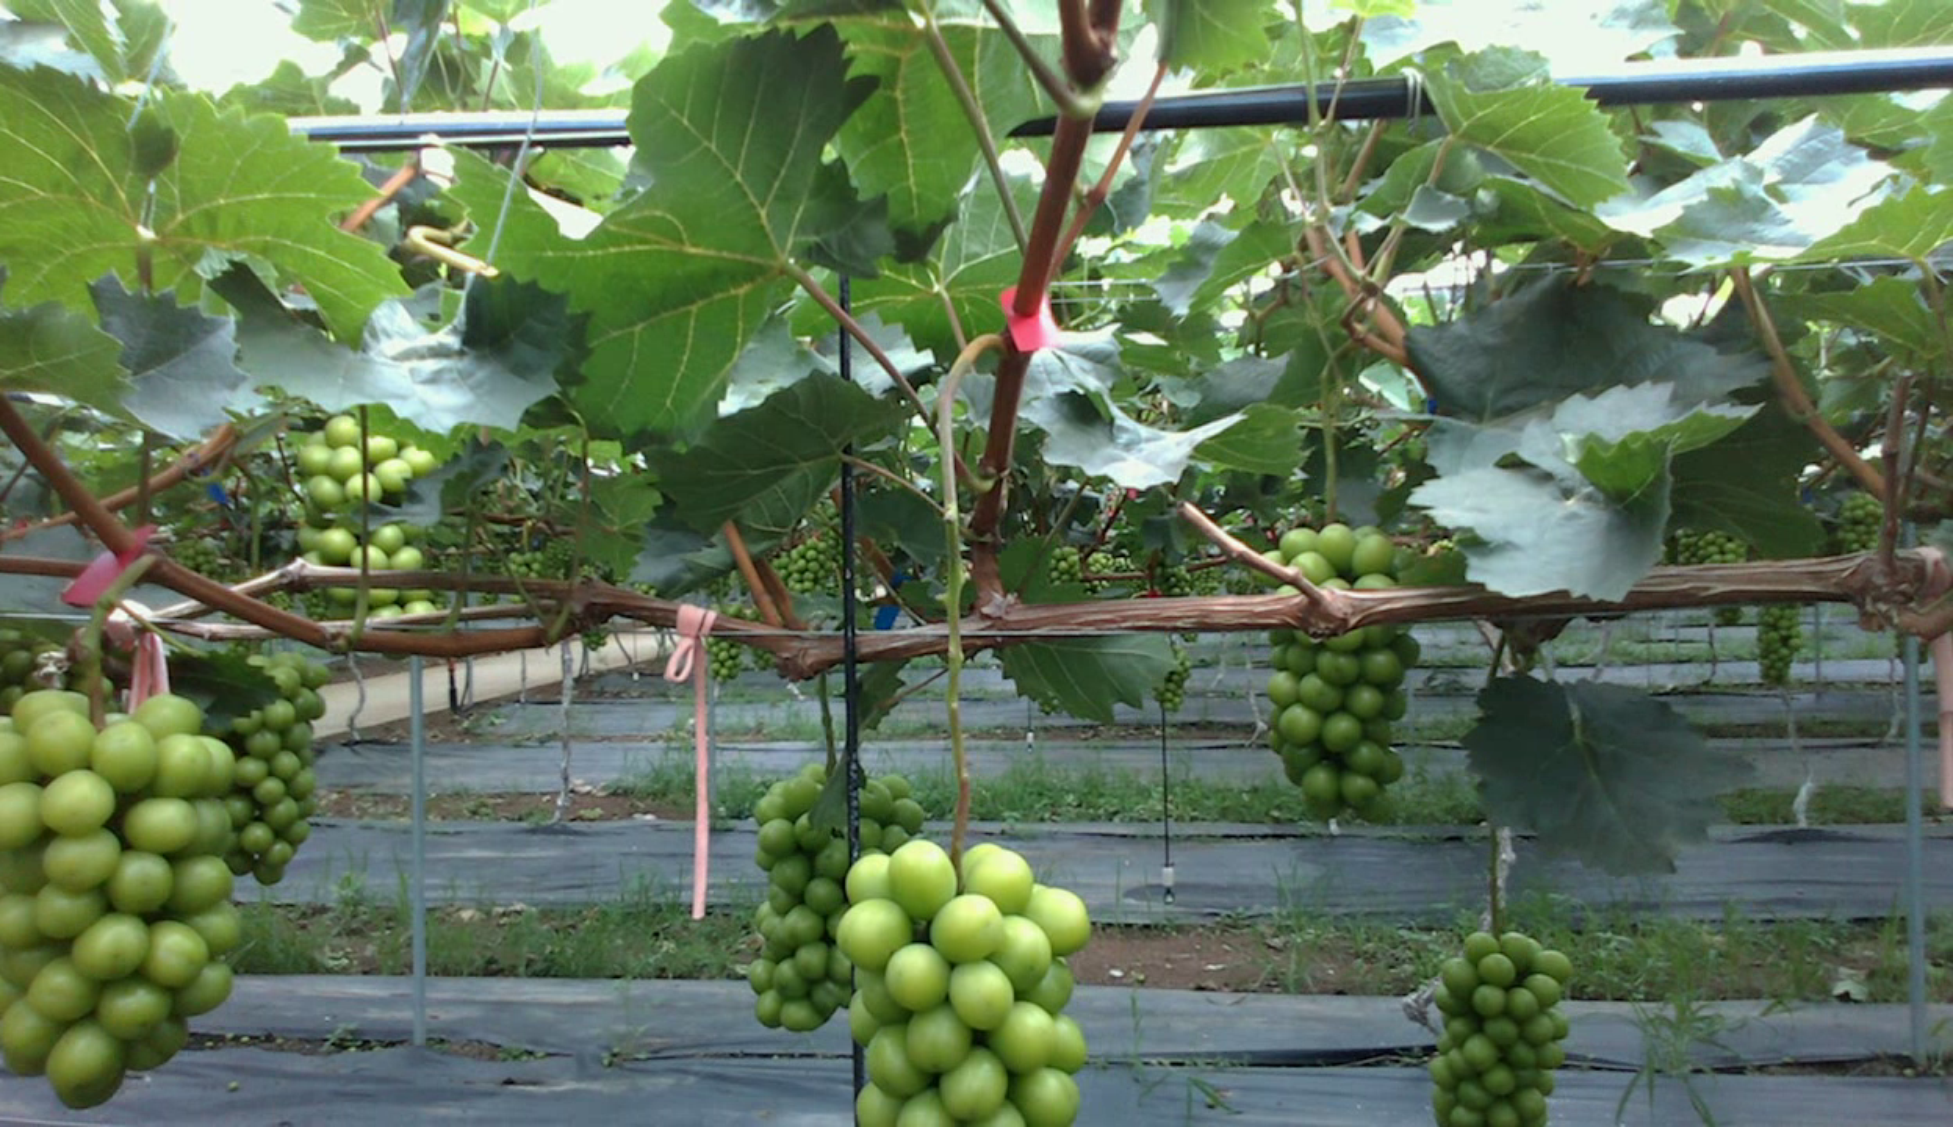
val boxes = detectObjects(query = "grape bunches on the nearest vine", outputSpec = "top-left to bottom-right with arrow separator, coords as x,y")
2,689 -> 244,1111
837,842 -> 1091,1125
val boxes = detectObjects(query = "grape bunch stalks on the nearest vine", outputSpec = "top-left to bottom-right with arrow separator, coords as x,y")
937,333 -> 1006,894
78,553 -> 160,731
